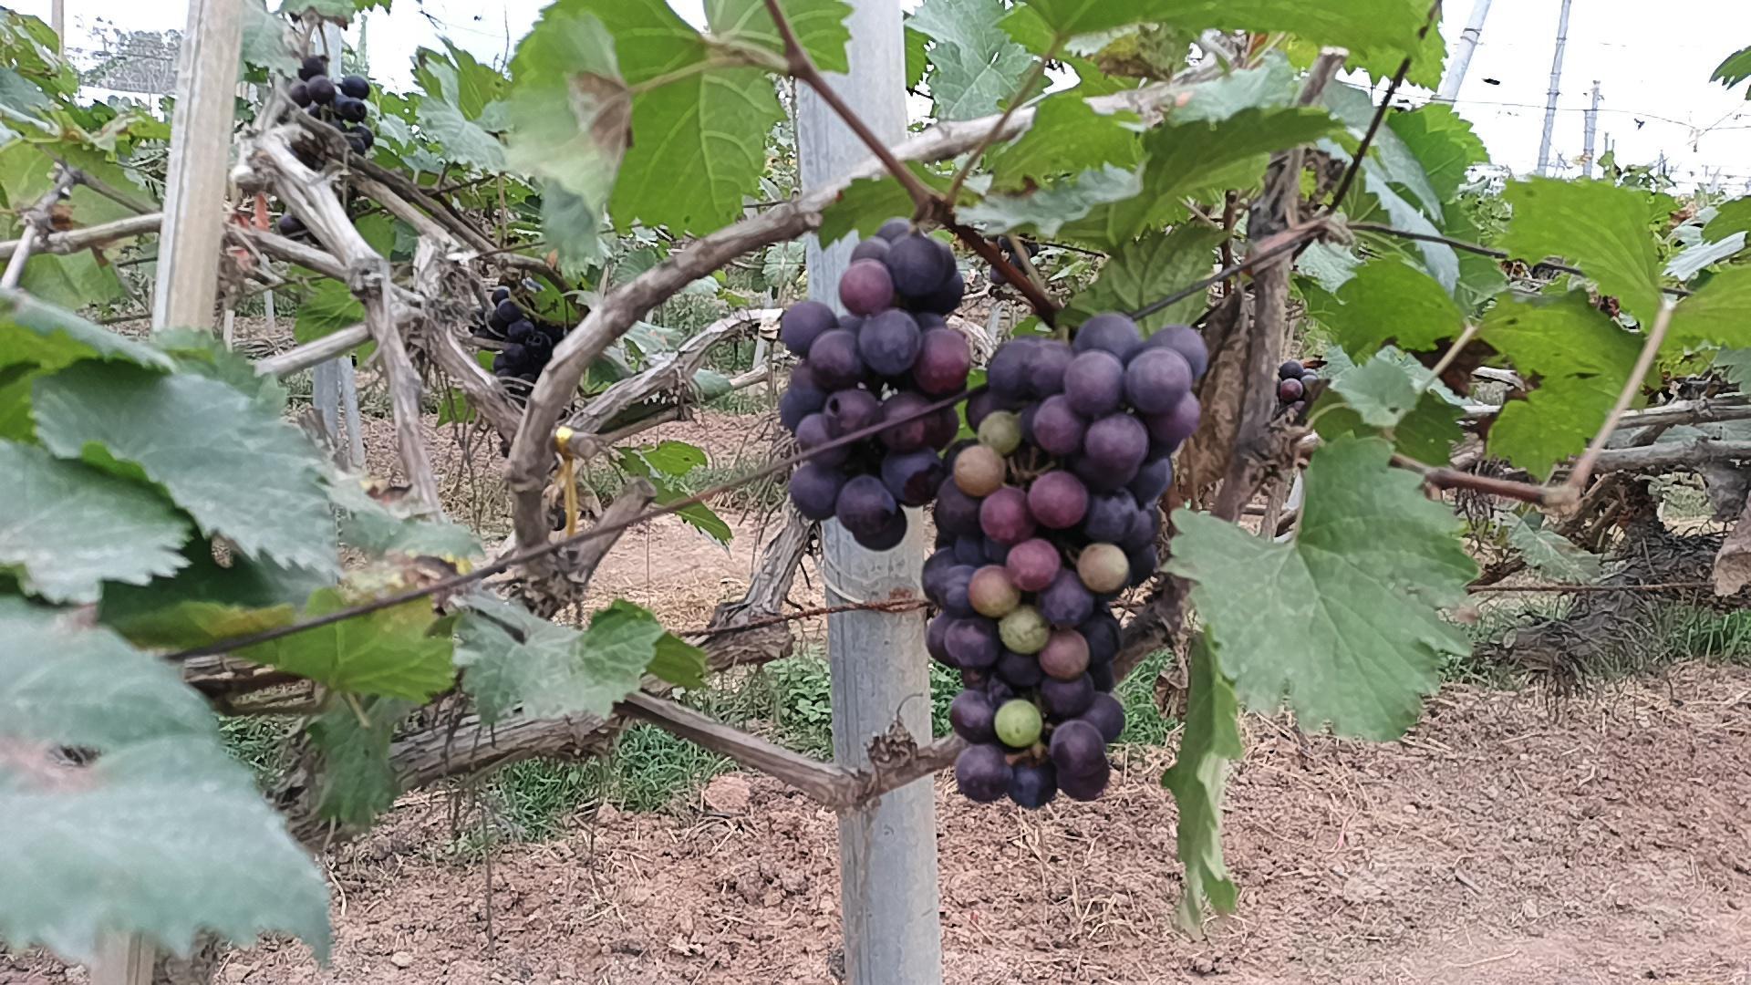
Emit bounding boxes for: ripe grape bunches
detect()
[469,285,566,398]
[781,219,969,551]
[288,55,375,155]
[275,216,305,237]
[1276,360,1326,424]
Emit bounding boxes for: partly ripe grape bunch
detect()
[921,313,1207,807]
